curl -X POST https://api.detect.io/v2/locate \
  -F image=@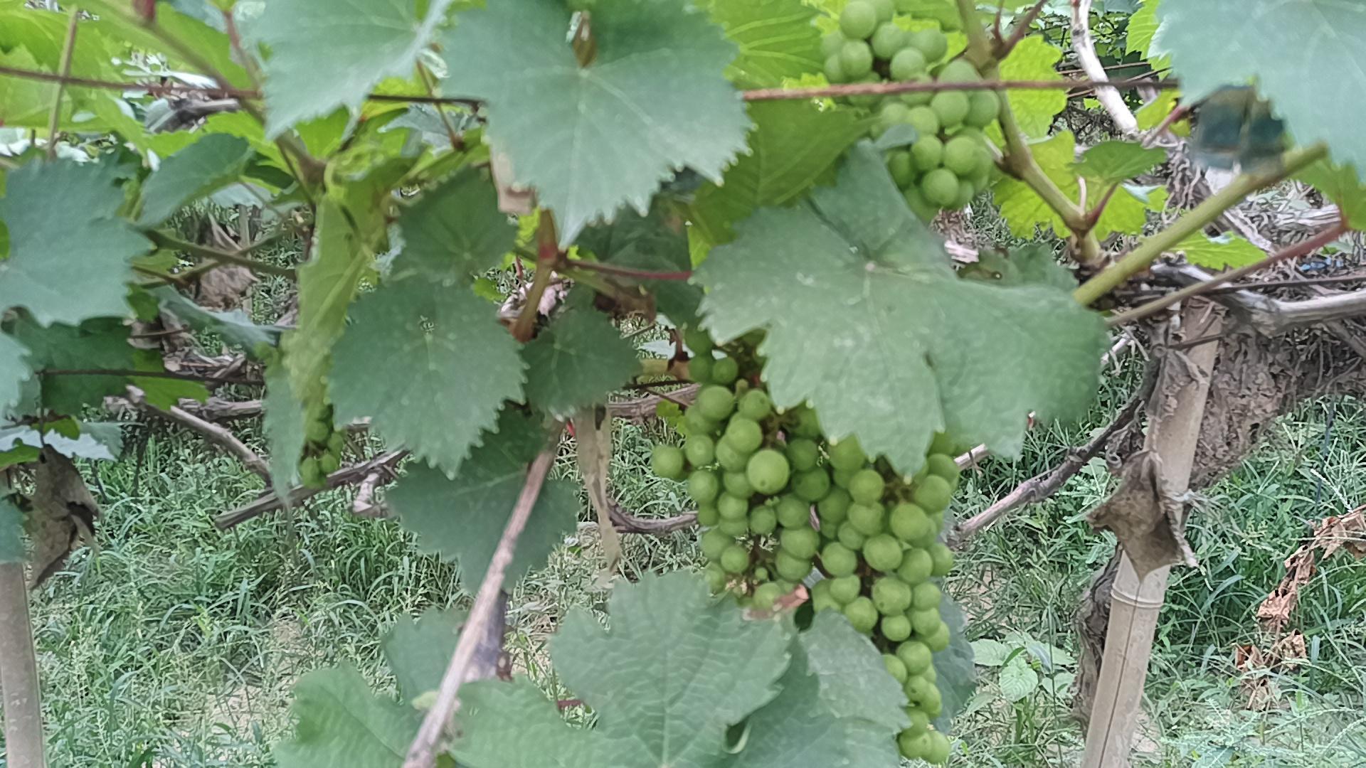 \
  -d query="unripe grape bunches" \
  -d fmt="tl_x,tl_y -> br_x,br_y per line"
810,432 -> 963,764
297,395 -> 346,489
653,324 -> 832,609
817,0 -> 1003,228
